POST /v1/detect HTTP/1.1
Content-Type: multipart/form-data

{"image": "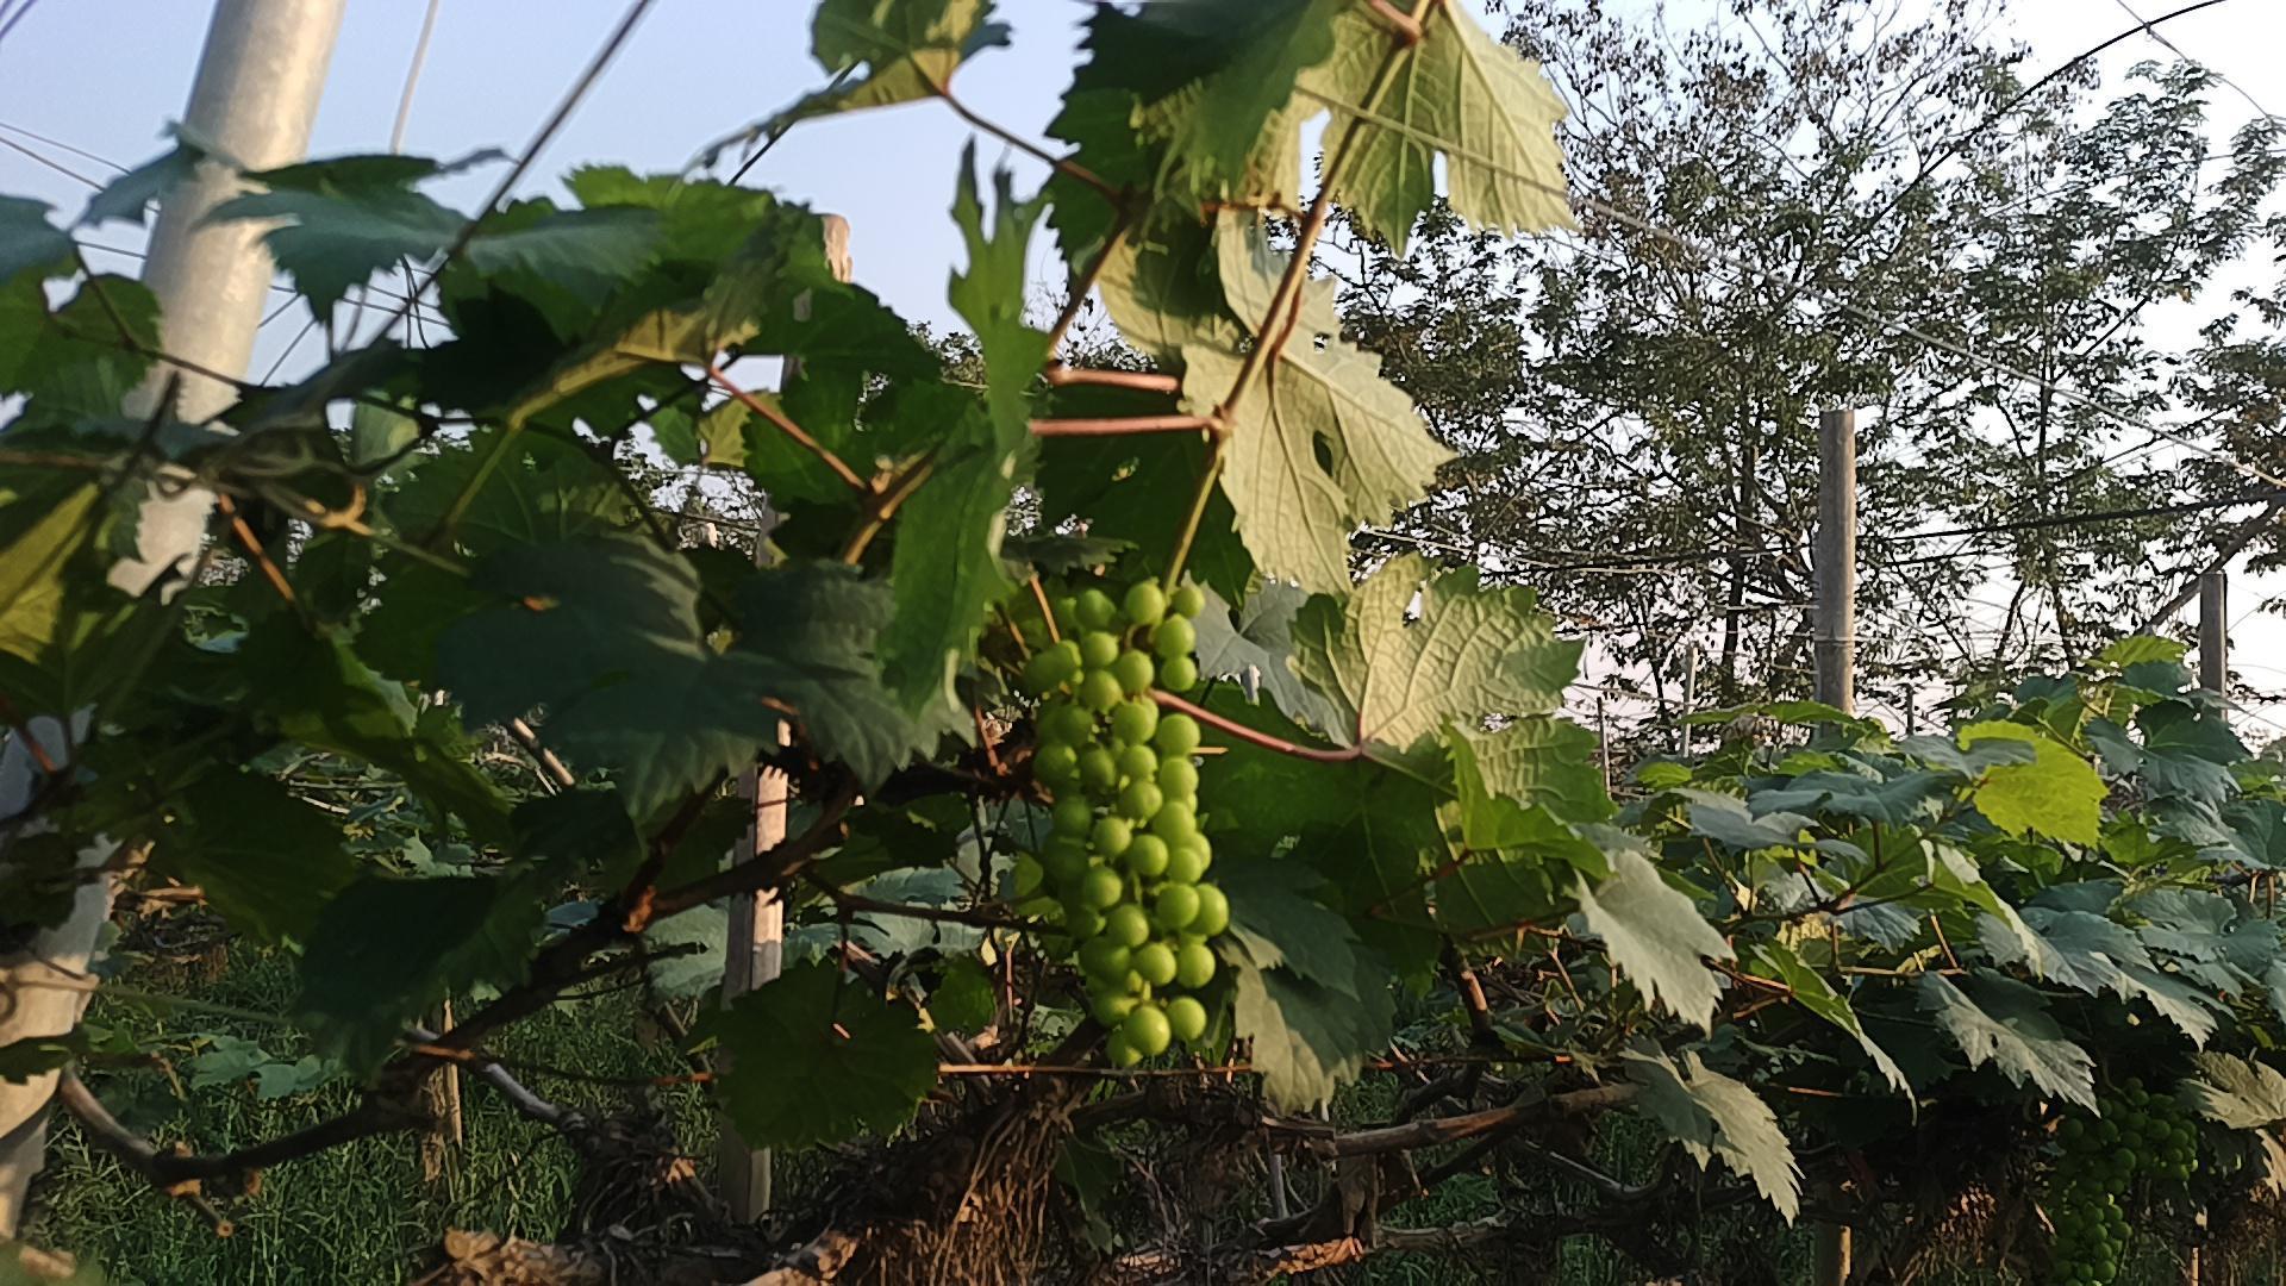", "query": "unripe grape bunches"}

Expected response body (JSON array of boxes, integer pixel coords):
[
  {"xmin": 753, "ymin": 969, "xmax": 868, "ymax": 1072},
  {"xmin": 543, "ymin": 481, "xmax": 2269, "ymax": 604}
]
[
  {"xmin": 2043, "ymin": 1079, "xmax": 2205, "ymax": 1285},
  {"xmin": 1022, "ymin": 579, "xmax": 1230, "ymax": 1063}
]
